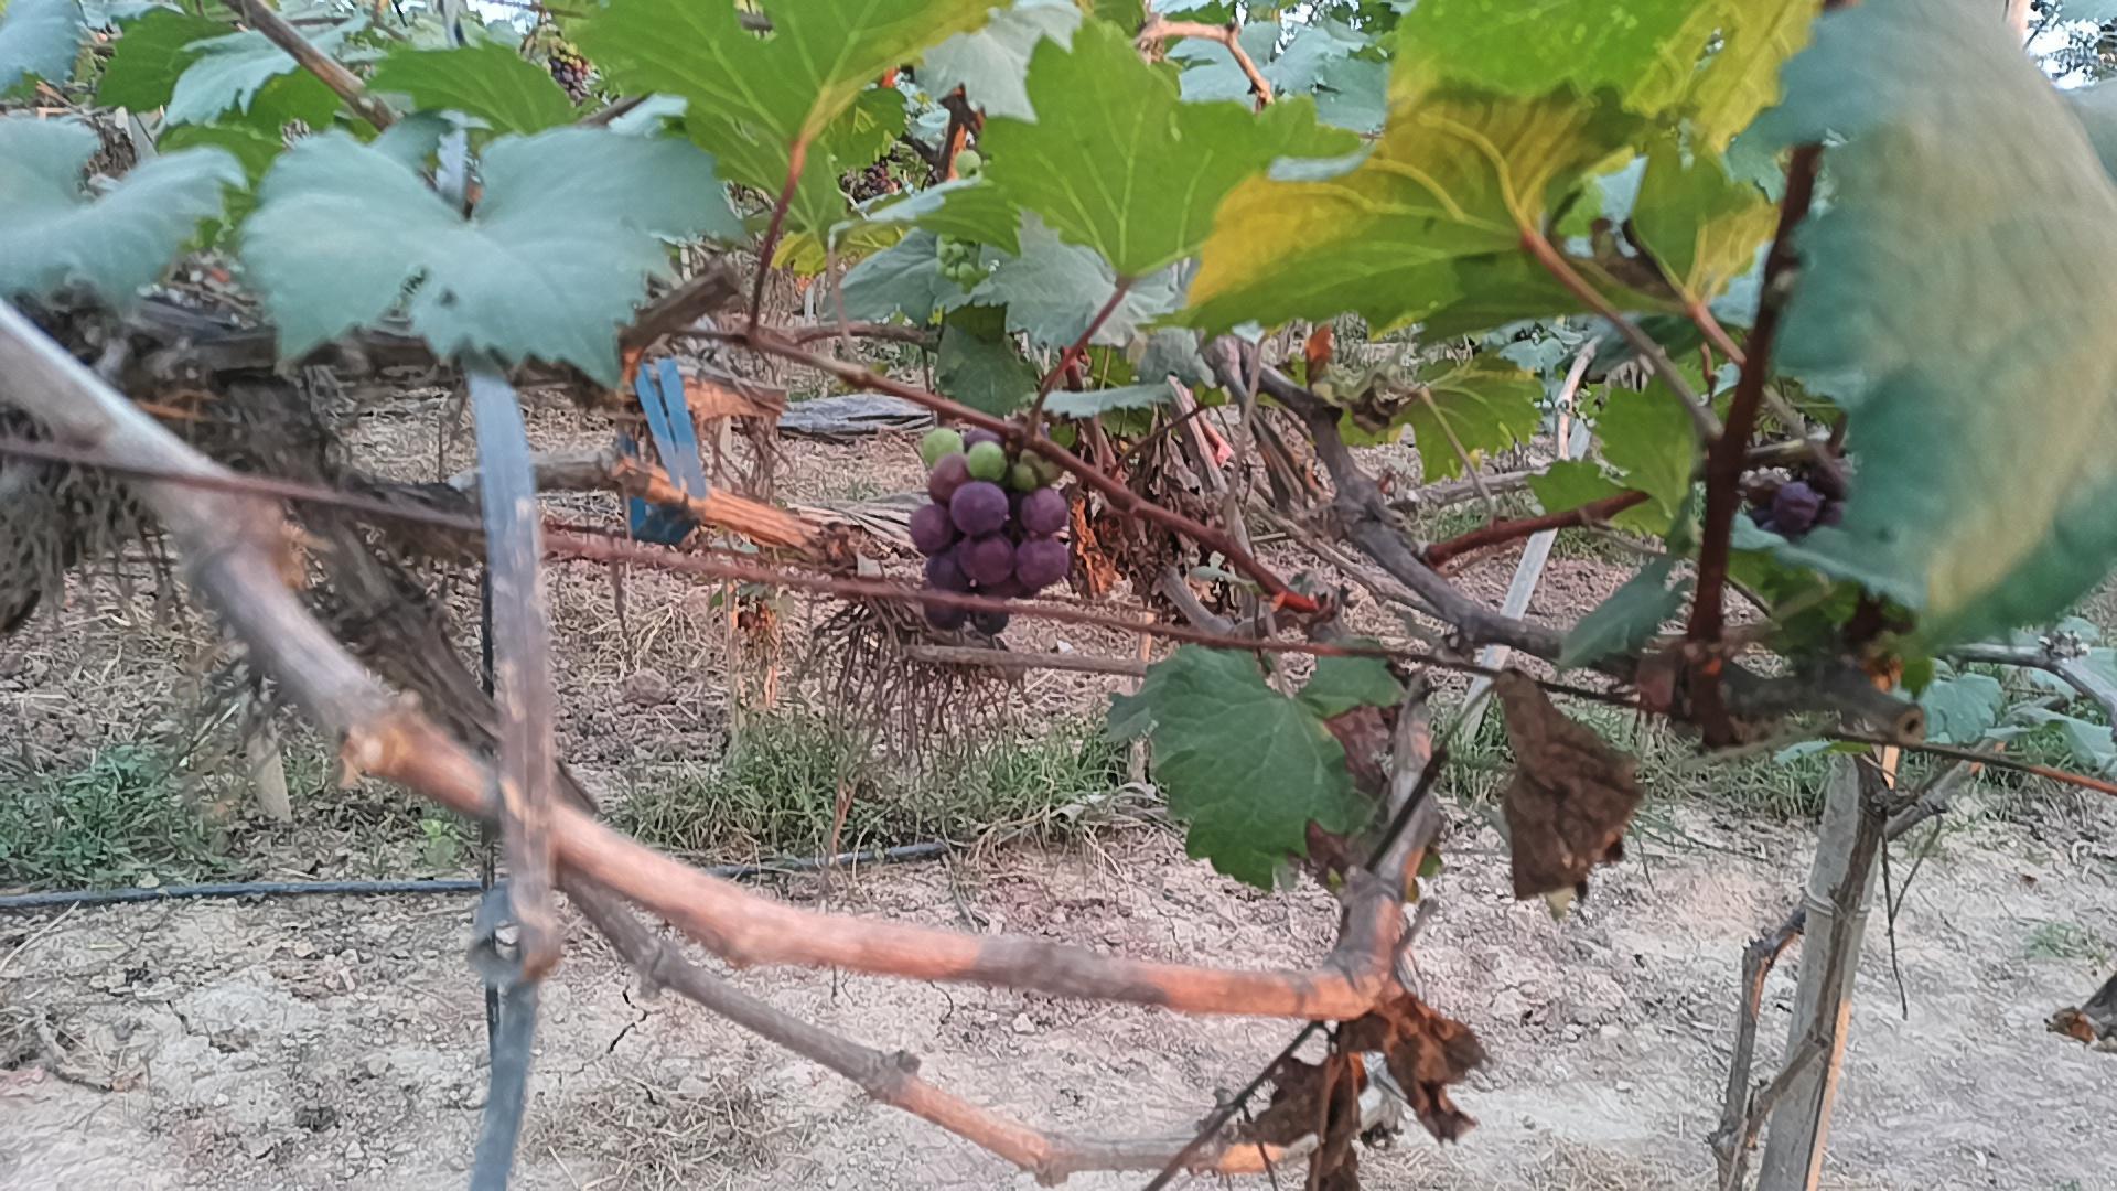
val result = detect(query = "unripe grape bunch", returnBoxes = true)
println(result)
[936,150,992,297]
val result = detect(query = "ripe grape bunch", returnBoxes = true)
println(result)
[1748,460,1848,543]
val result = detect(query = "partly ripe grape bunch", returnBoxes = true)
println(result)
[907,415,1070,635]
